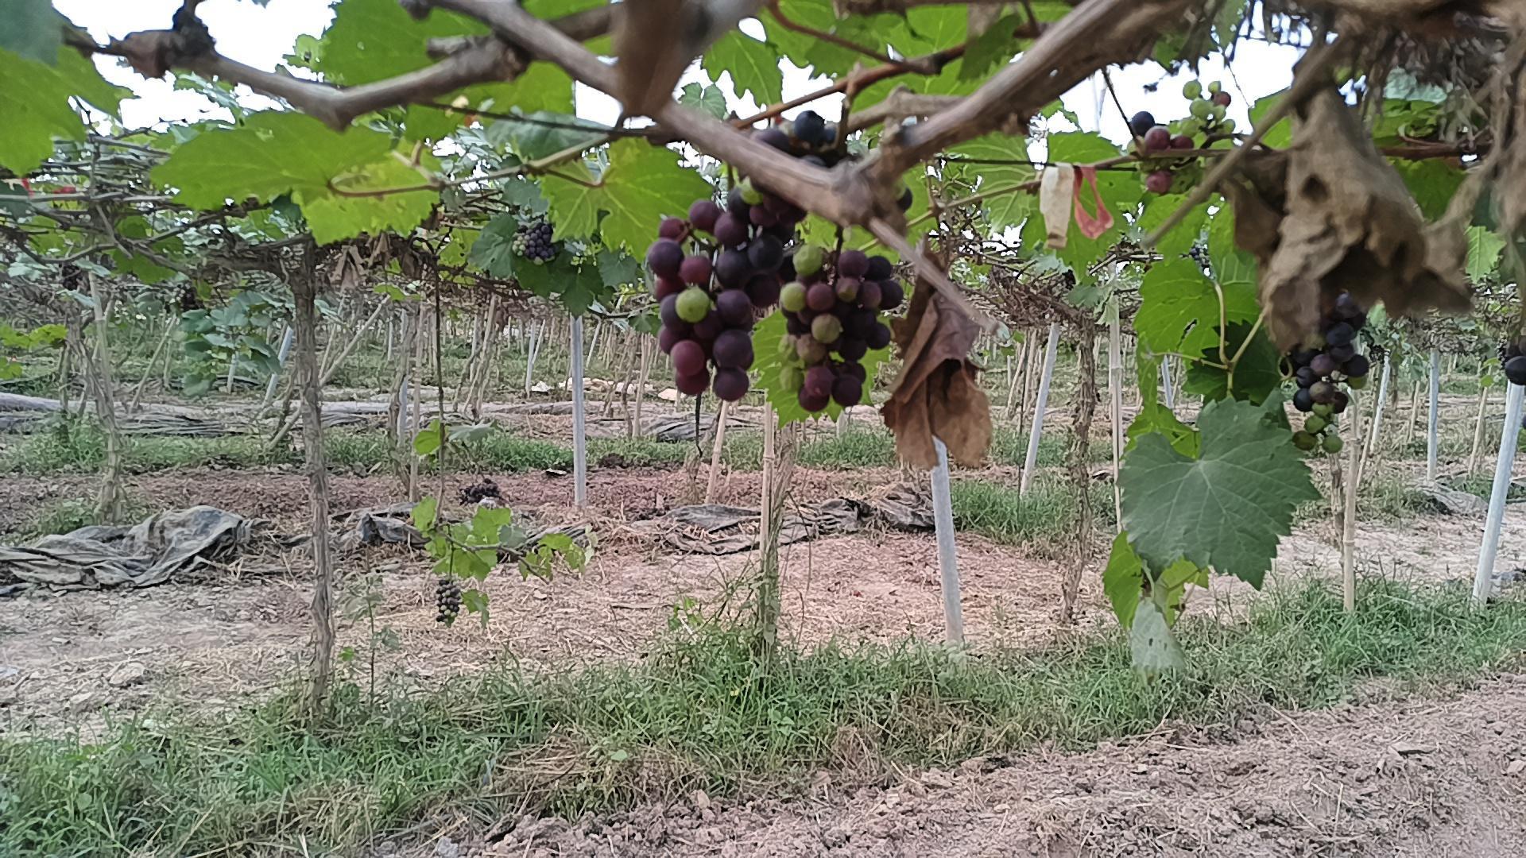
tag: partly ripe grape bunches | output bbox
[1180,80,1236,139]
[1127,111,1196,195]
[779,245,903,412]
[512,220,564,265]
[435,574,463,625]
[647,186,799,401]
[738,111,848,226]
[1286,293,1370,451]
